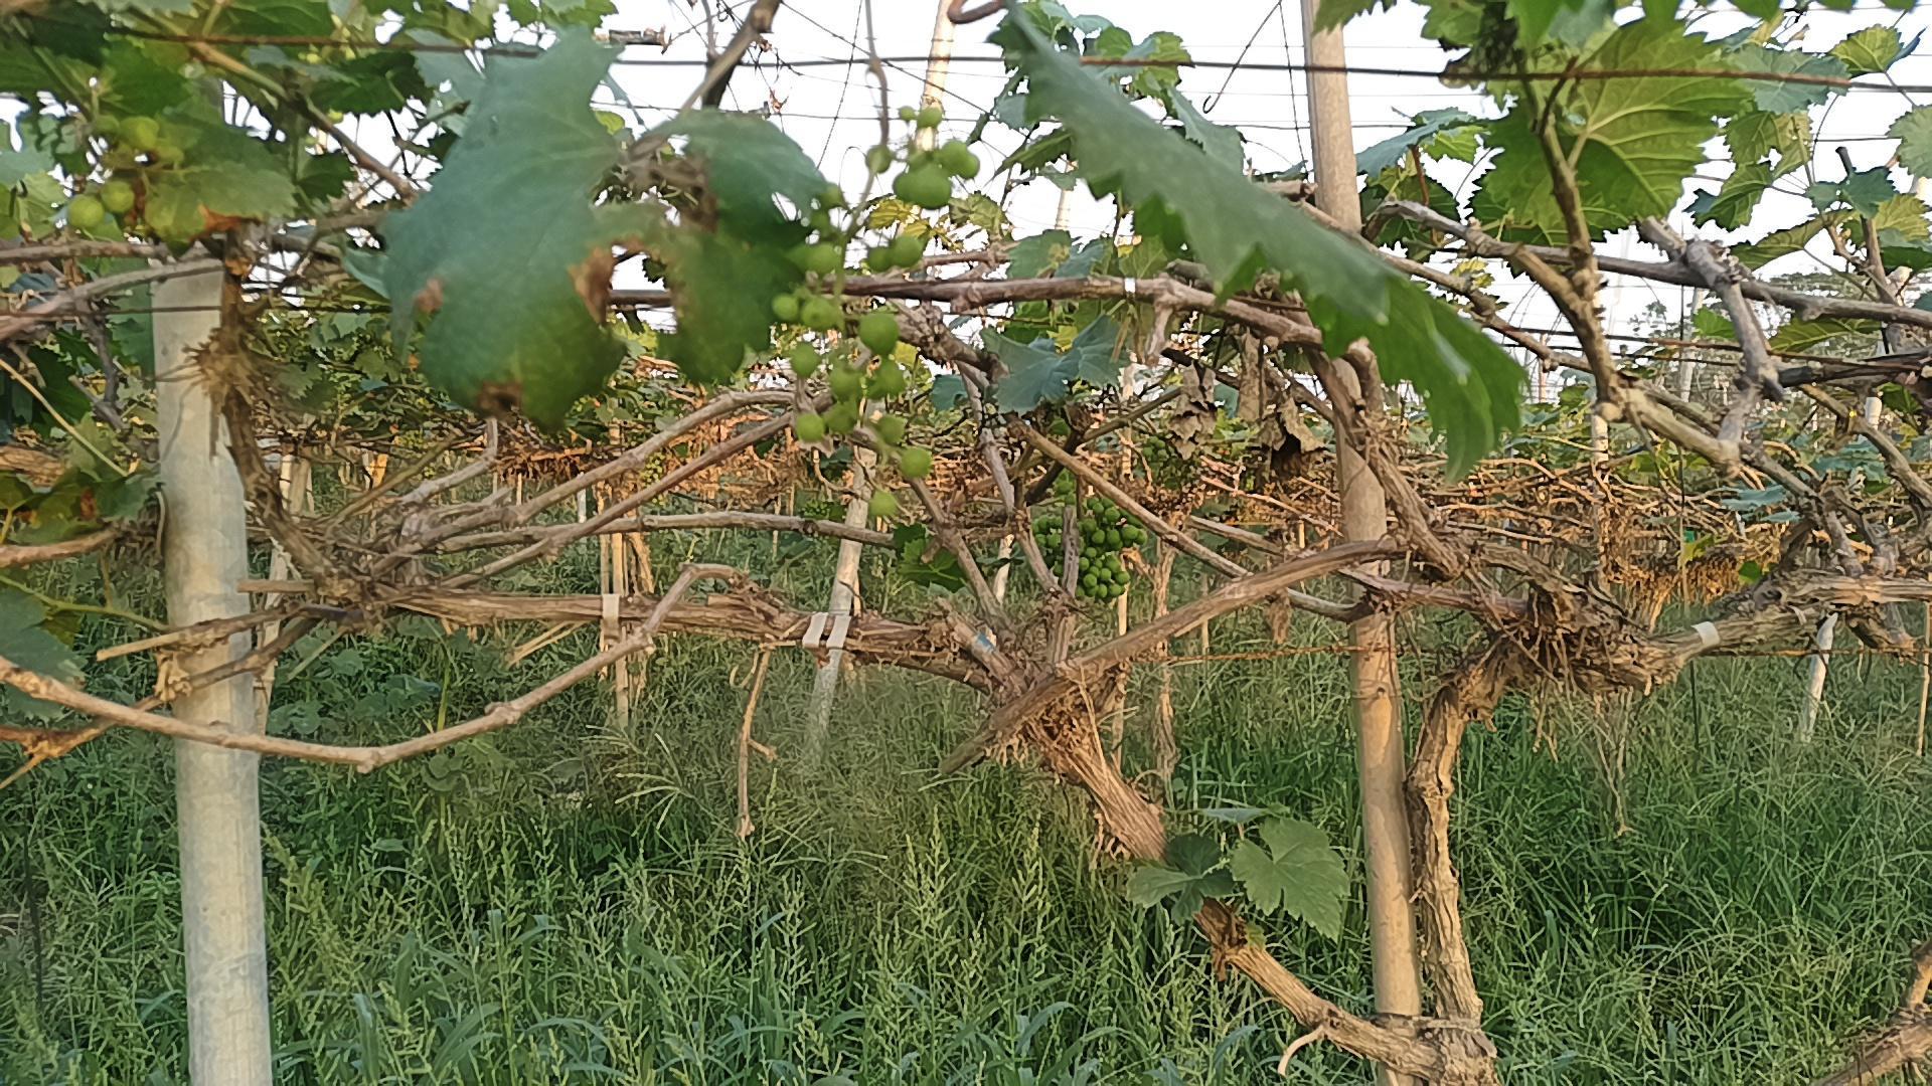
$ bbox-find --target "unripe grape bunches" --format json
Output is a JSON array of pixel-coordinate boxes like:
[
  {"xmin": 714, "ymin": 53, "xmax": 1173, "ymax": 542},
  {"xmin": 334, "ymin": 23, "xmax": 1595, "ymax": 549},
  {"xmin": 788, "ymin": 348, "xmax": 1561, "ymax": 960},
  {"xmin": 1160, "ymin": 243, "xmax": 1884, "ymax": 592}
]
[
  {"xmin": 1034, "ymin": 476, "xmax": 1147, "ymax": 601},
  {"xmin": 67, "ymin": 180, "xmax": 134, "ymax": 236},
  {"xmin": 773, "ymin": 141, "xmax": 977, "ymax": 519},
  {"xmin": 1139, "ymin": 434, "xmax": 1196, "ymax": 490}
]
